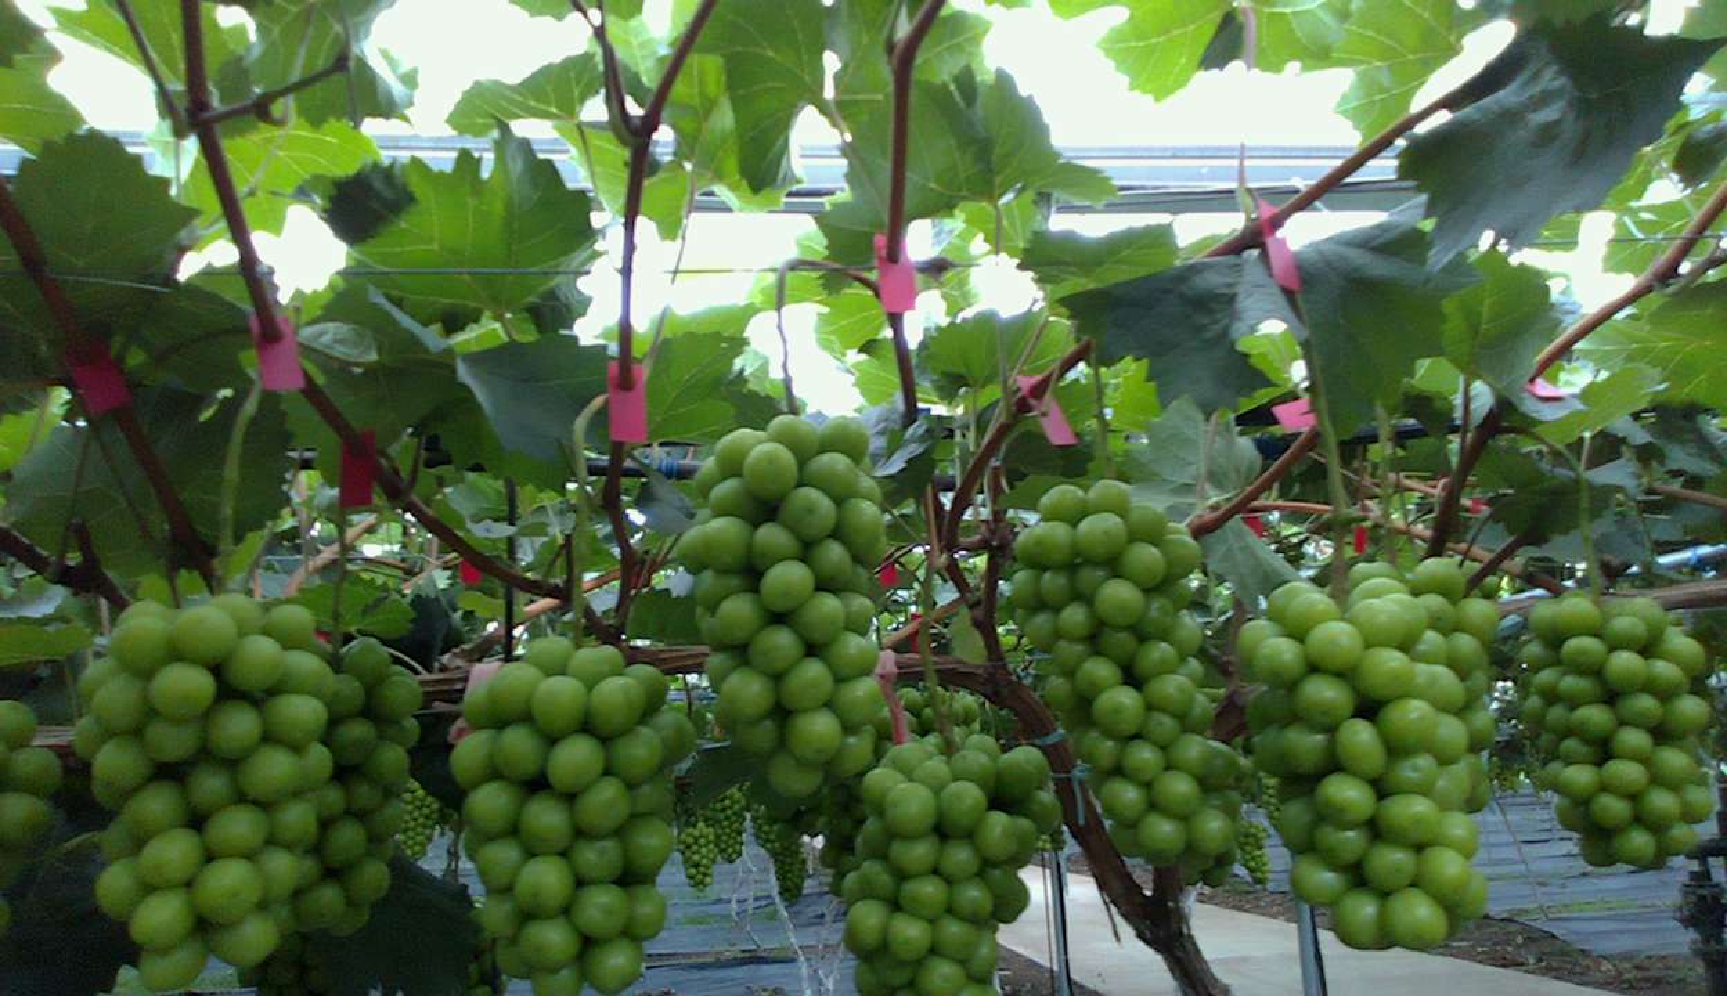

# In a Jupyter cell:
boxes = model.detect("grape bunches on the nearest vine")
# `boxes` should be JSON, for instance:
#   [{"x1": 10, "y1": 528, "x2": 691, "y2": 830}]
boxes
[
  {"x1": 673, "y1": 418, "x2": 891, "y2": 794},
  {"x1": 839, "y1": 732, "x2": 1061, "y2": 995},
  {"x1": 1236, "y1": 557, "x2": 1499, "y2": 952},
  {"x1": 1012, "y1": 479, "x2": 1244, "y2": 871},
  {"x1": 451, "y1": 634, "x2": 695, "y2": 995},
  {"x1": 275, "y1": 638, "x2": 422, "y2": 937},
  {"x1": 1521, "y1": 588, "x2": 1717, "y2": 871},
  {"x1": 71, "y1": 591, "x2": 336, "y2": 992}
]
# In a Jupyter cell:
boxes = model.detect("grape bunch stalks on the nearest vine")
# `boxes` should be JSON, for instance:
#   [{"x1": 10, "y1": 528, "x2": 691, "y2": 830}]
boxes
[
  {"x1": 919, "y1": 486, "x2": 958, "y2": 757},
  {"x1": 1513, "y1": 426, "x2": 1601, "y2": 605},
  {"x1": 569, "y1": 401, "x2": 599, "y2": 647},
  {"x1": 778, "y1": 257, "x2": 836, "y2": 415},
  {"x1": 1294, "y1": 295, "x2": 1369, "y2": 609},
  {"x1": 1090, "y1": 346, "x2": 1113, "y2": 479},
  {"x1": 213, "y1": 380, "x2": 260, "y2": 593},
  {"x1": 333, "y1": 509, "x2": 345, "y2": 663}
]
